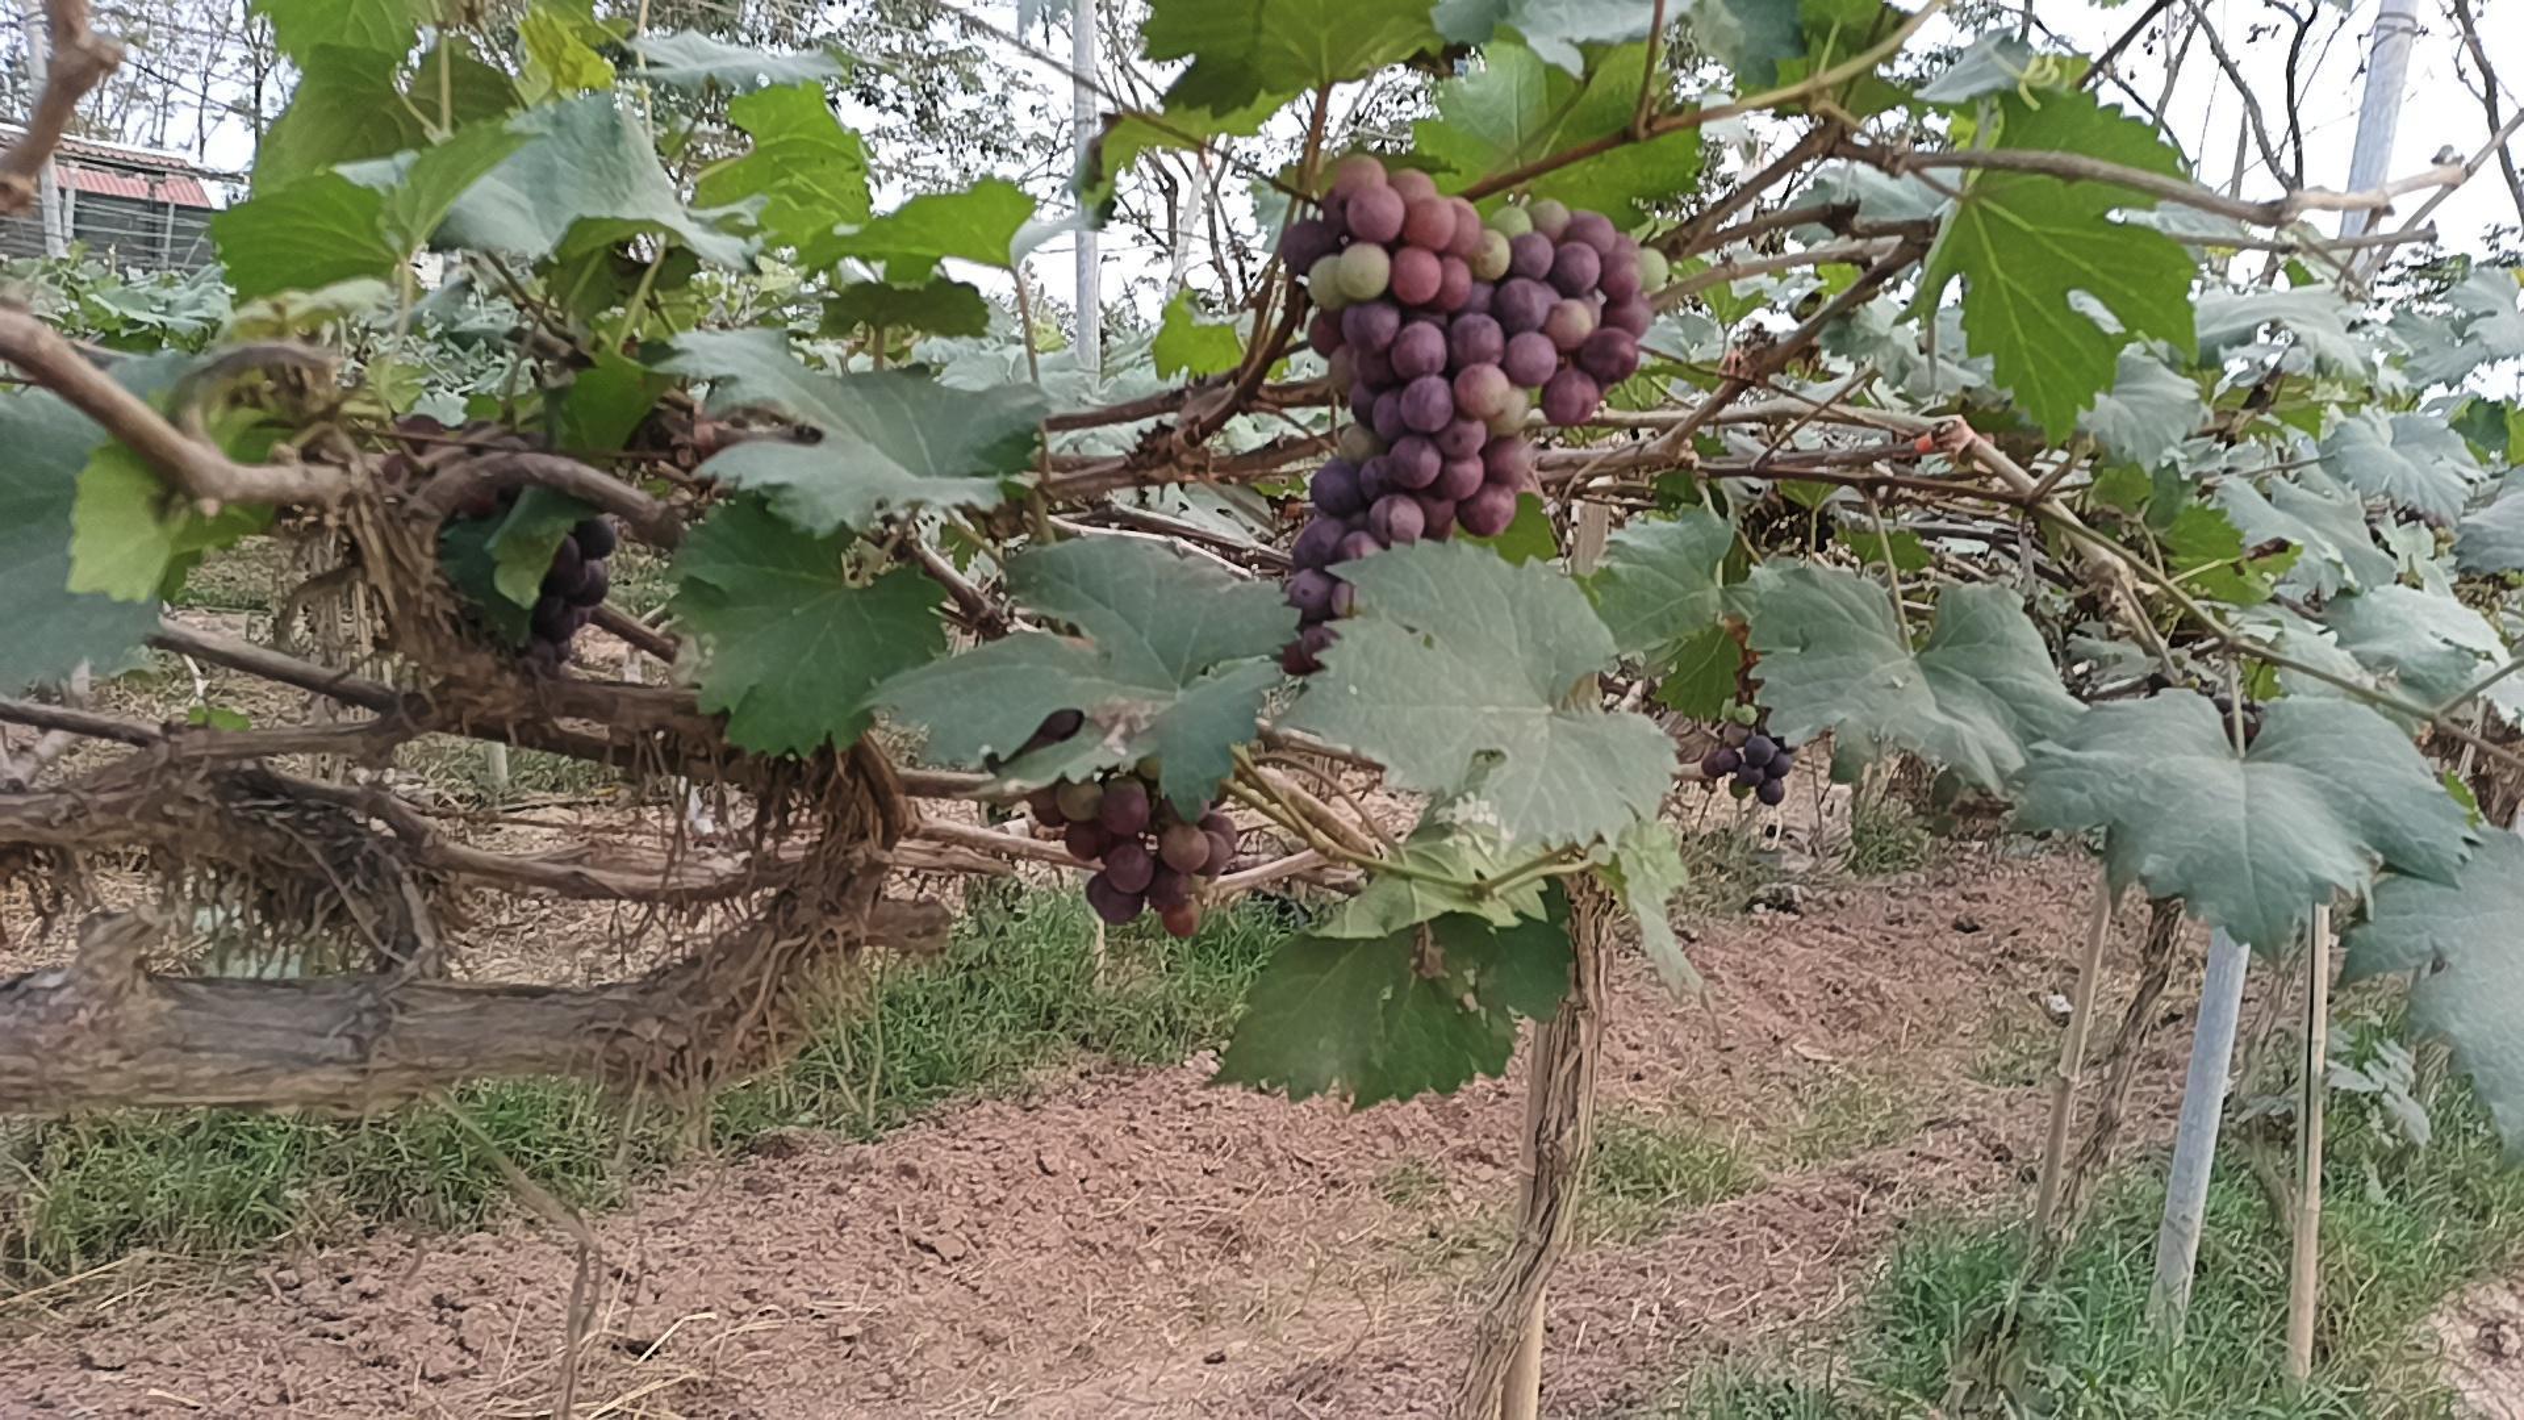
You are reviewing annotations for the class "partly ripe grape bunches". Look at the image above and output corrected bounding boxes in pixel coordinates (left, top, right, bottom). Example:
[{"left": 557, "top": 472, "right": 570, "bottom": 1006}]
[
  {"left": 1279, "top": 155, "right": 1663, "bottom": 674},
  {"left": 1698, "top": 703, "right": 1793, "bottom": 806},
  {"left": 993, "top": 709, "right": 1237, "bottom": 937}
]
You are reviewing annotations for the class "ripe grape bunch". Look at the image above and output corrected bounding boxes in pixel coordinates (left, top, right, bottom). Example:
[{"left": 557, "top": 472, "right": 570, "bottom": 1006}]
[{"left": 528, "top": 514, "right": 617, "bottom": 673}]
